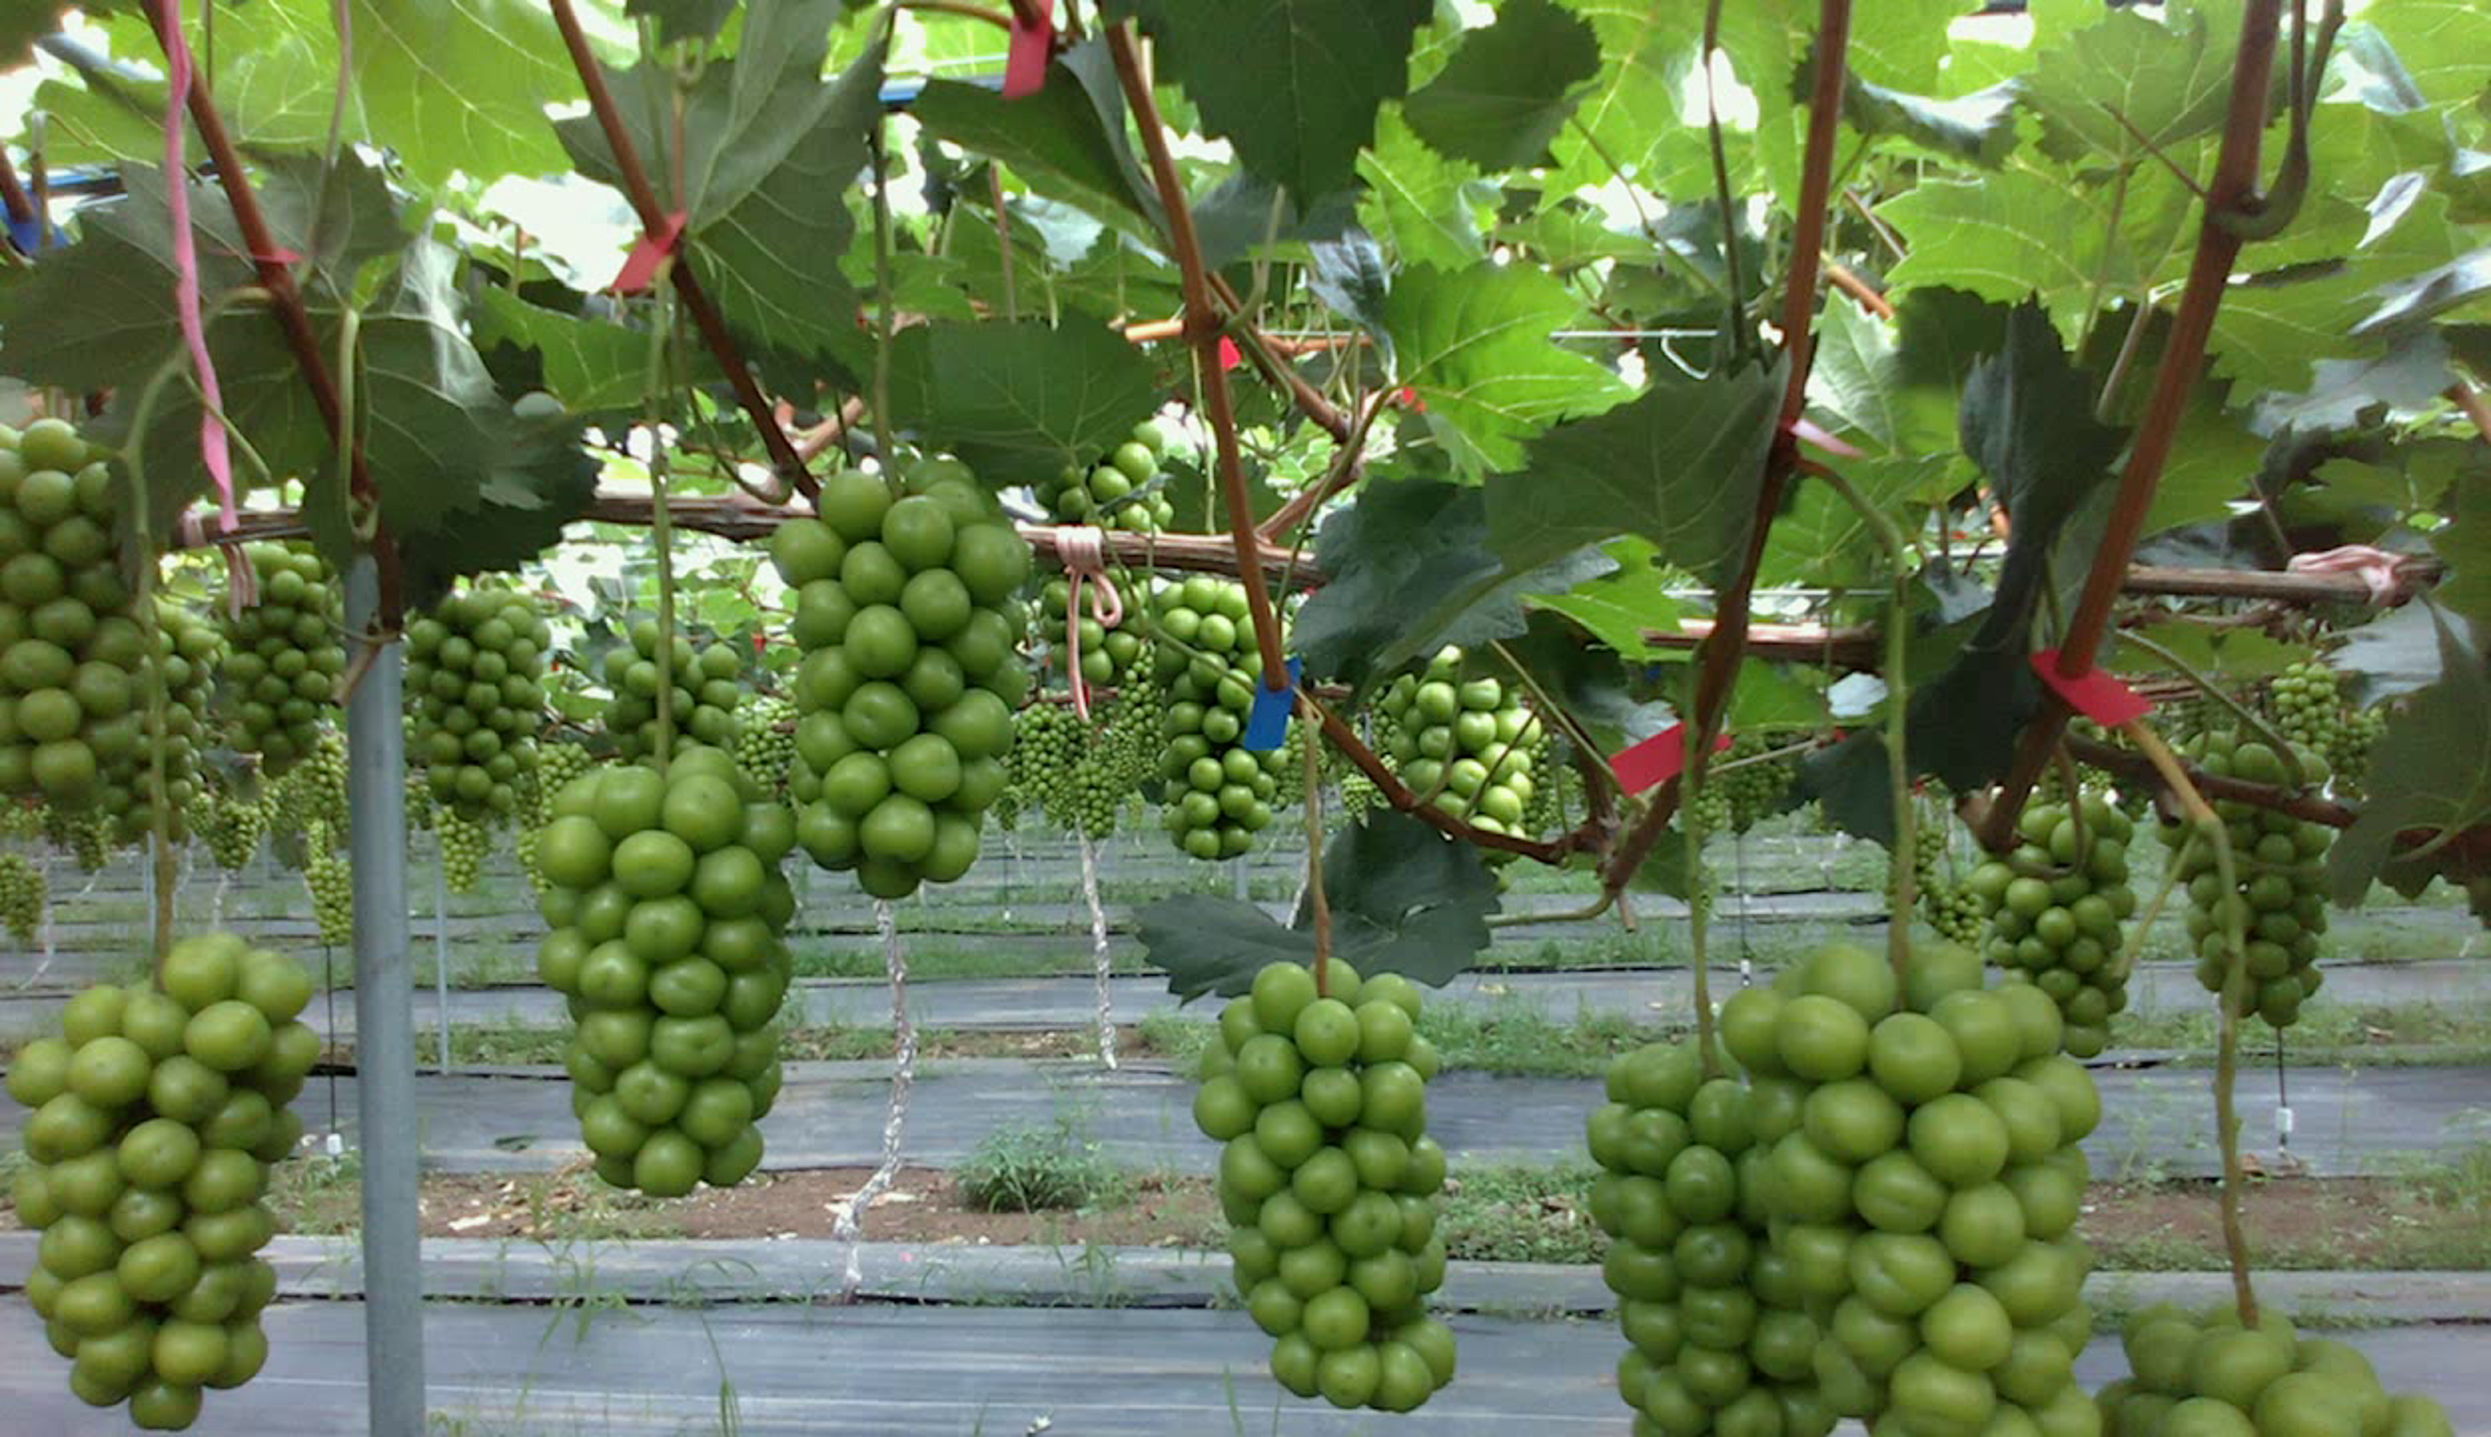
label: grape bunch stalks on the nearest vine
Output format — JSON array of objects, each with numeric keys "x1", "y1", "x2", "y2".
[
  {"x1": 643, "y1": 255, "x2": 675, "y2": 780},
  {"x1": 2120, "y1": 718, "x2": 2257, "y2": 1329},
  {"x1": 1301, "y1": 703, "x2": 1331, "y2": 998},
  {"x1": 122, "y1": 287, "x2": 271, "y2": 992},
  {"x1": 1679, "y1": 637, "x2": 1729, "y2": 1078},
  {"x1": 870, "y1": 114, "x2": 904, "y2": 501},
  {"x1": 1788, "y1": 457, "x2": 1914, "y2": 1014}
]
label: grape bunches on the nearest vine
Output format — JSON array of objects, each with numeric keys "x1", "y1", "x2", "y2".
[
  {"x1": 1721, "y1": 940, "x2": 2102, "y2": 1435},
  {"x1": 1583, "y1": 1030, "x2": 1886, "y2": 1435},
  {"x1": 768, "y1": 461, "x2": 1030, "y2": 900},
  {"x1": 535, "y1": 746, "x2": 796, "y2": 1197},
  {"x1": 1190, "y1": 958, "x2": 1459, "y2": 1415},
  {"x1": 8, "y1": 932, "x2": 325, "y2": 1431},
  {"x1": 2088, "y1": 1299, "x2": 2455, "y2": 1435}
]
